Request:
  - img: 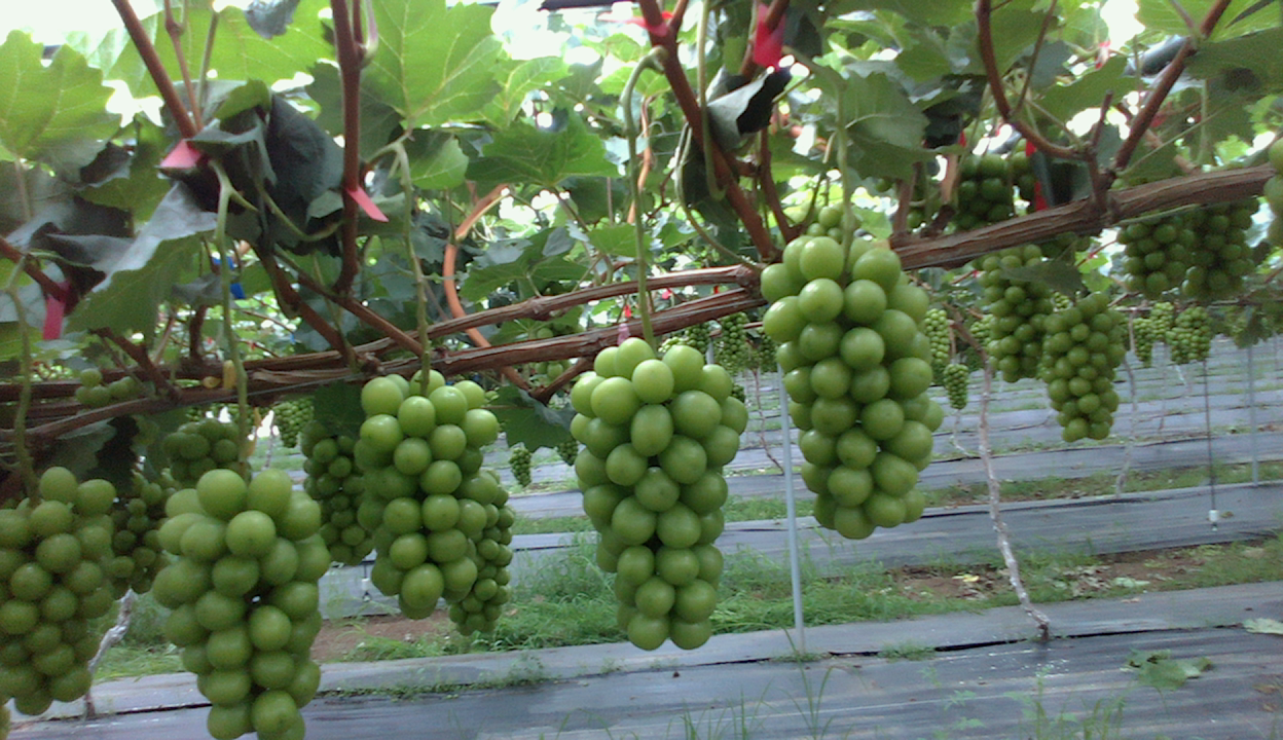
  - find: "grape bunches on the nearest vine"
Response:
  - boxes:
[760,236,945,540]
[1,466,118,715]
[570,336,747,652]
[355,370,501,620]
[153,469,332,739]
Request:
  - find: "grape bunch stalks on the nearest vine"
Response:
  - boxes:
[206,156,249,482]
[5,251,60,505]
[782,45,854,266]
[621,42,668,353]
[359,141,430,397]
